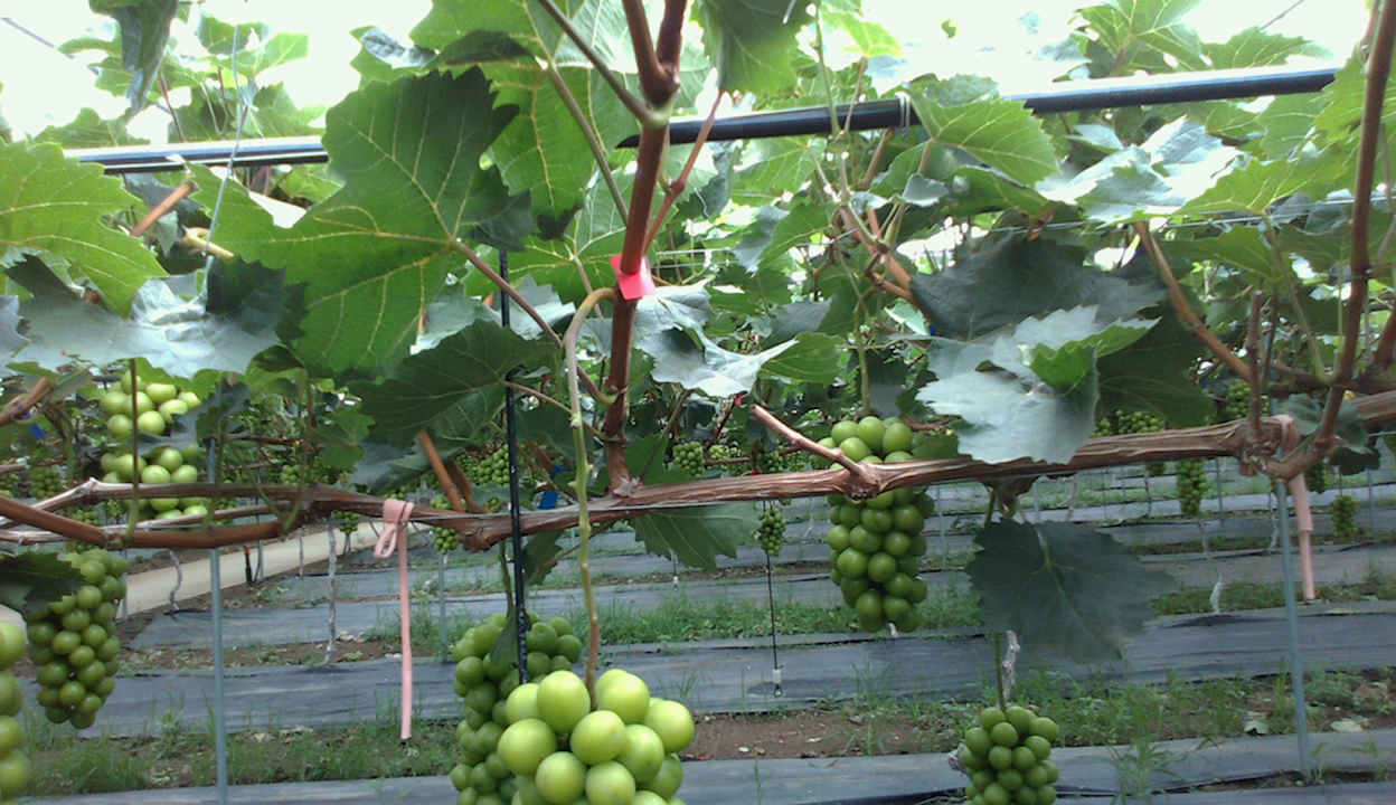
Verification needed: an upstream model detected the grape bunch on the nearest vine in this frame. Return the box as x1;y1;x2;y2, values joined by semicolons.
494;671;697;804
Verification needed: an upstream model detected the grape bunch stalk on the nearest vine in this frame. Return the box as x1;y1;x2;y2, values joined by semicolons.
559;291;607;710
